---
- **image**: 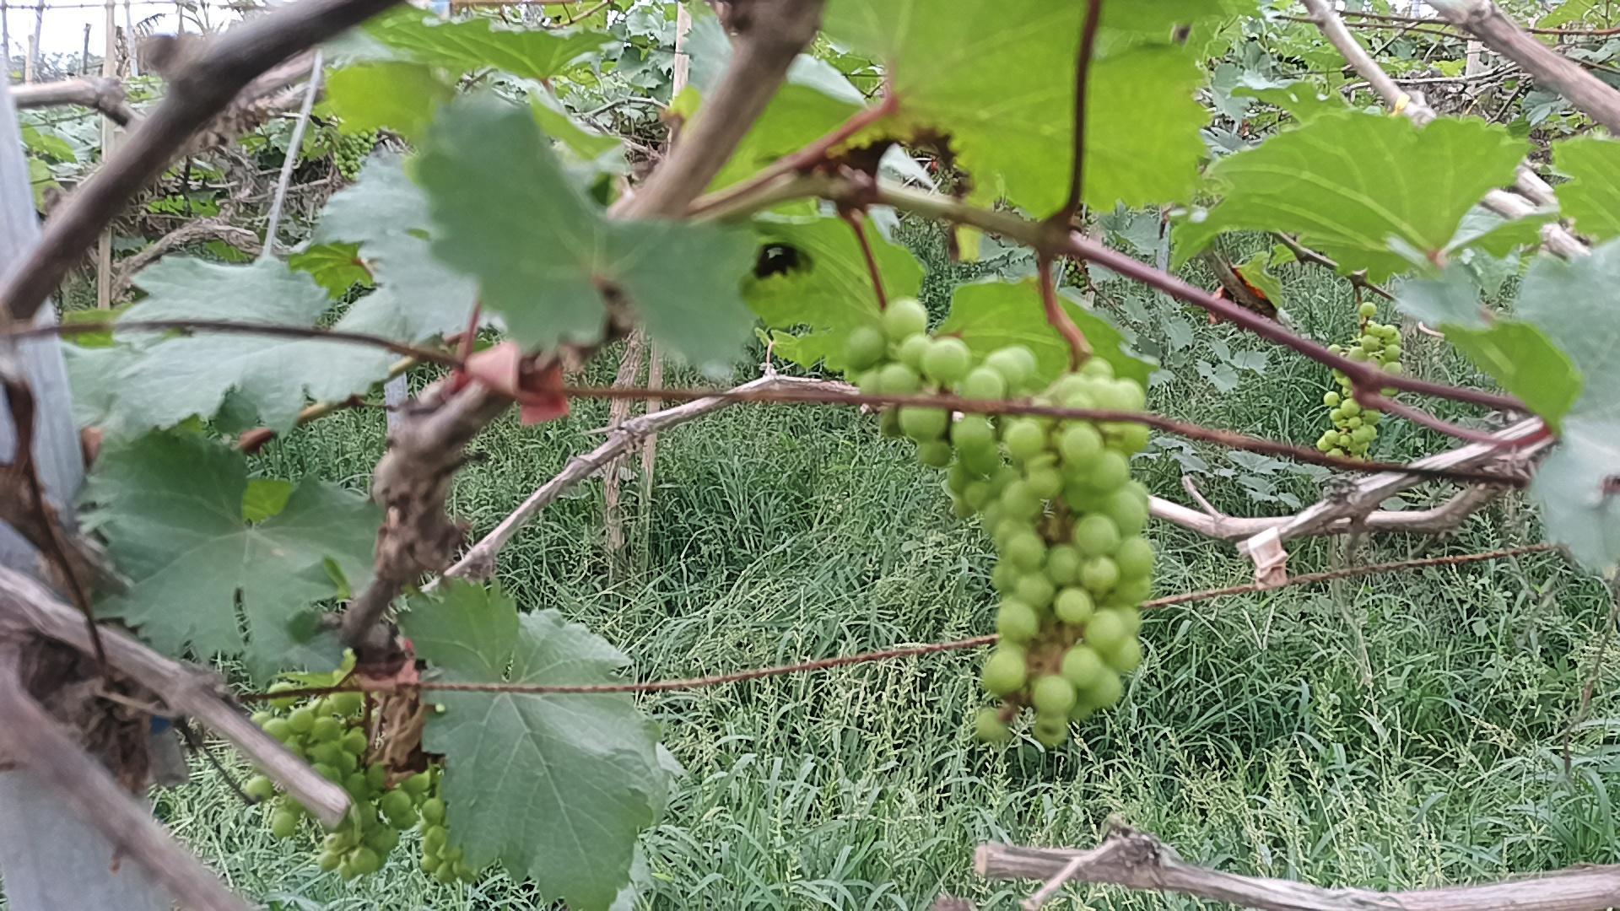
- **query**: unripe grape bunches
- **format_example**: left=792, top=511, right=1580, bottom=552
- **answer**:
left=964, top=416, right=1154, bottom=747
left=845, top=298, right=1039, bottom=399
left=880, top=407, right=1013, bottom=516
left=1326, top=301, right=1403, bottom=378
left=246, top=681, right=369, bottom=790
left=1032, top=358, right=1144, bottom=412
left=418, top=797, right=483, bottom=886
left=316, top=761, right=431, bottom=882
left=312, top=132, right=332, bottom=149
left=1316, top=368, right=1382, bottom=461
left=332, top=127, right=380, bottom=181
left=1379, top=387, right=1399, bottom=396
left=244, top=774, right=307, bottom=838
